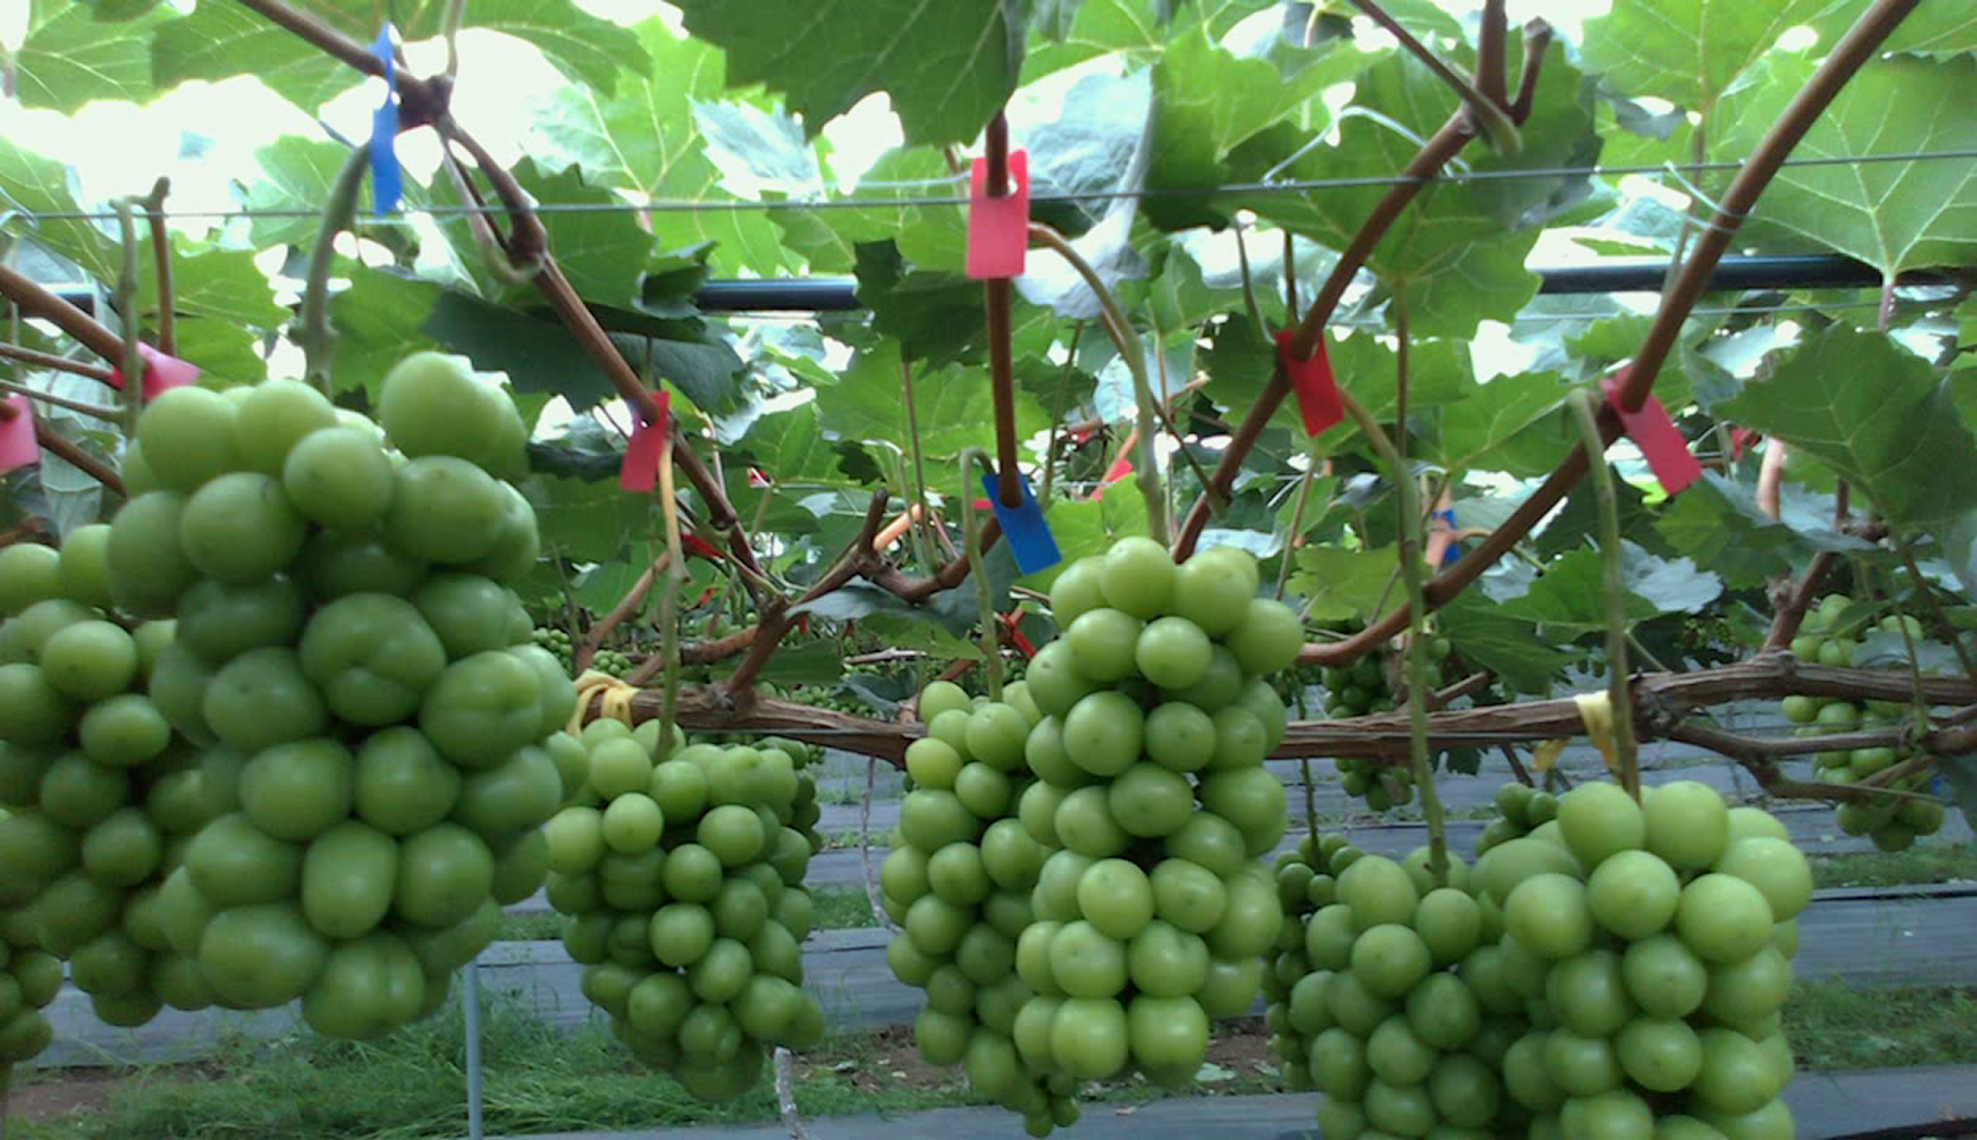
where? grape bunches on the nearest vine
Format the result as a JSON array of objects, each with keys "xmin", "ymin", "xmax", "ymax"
[
  {"xmin": 878, "ymin": 681, "xmax": 1042, "ymax": 1096},
  {"xmin": 547, "ymin": 720, "xmax": 822, "ymax": 1100},
  {"xmin": 1470, "ymin": 779, "xmax": 1814, "ymax": 1138},
  {"xmin": 106, "ymin": 353, "xmax": 591, "ymax": 1043},
  {"xmin": 0, "ymin": 527, "xmax": 206, "ymax": 1026},
  {"xmin": 1015, "ymin": 537, "xmax": 1302, "ymax": 1086},
  {"xmin": 1289, "ymin": 845, "xmax": 1532, "ymax": 1138}
]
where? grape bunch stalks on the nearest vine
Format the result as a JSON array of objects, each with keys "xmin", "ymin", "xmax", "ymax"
[
  {"xmin": 958, "ymin": 448, "xmax": 1001, "ymax": 698},
  {"xmin": 1358, "ymin": 407, "xmax": 1453, "ymax": 887},
  {"xmin": 1564, "ymin": 391, "xmax": 1638, "ymax": 795},
  {"xmin": 109, "ymin": 174, "xmax": 174, "ymax": 440},
  {"xmin": 1050, "ymin": 234, "xmax": 1168, "ymax": 546},
  {"xmin": 288, "ymin": 149, "xmax": 363, "ymax": 396},
  {"xmin": 653, "ymin": 467, "xmax": 691, "ymax": 763}
]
